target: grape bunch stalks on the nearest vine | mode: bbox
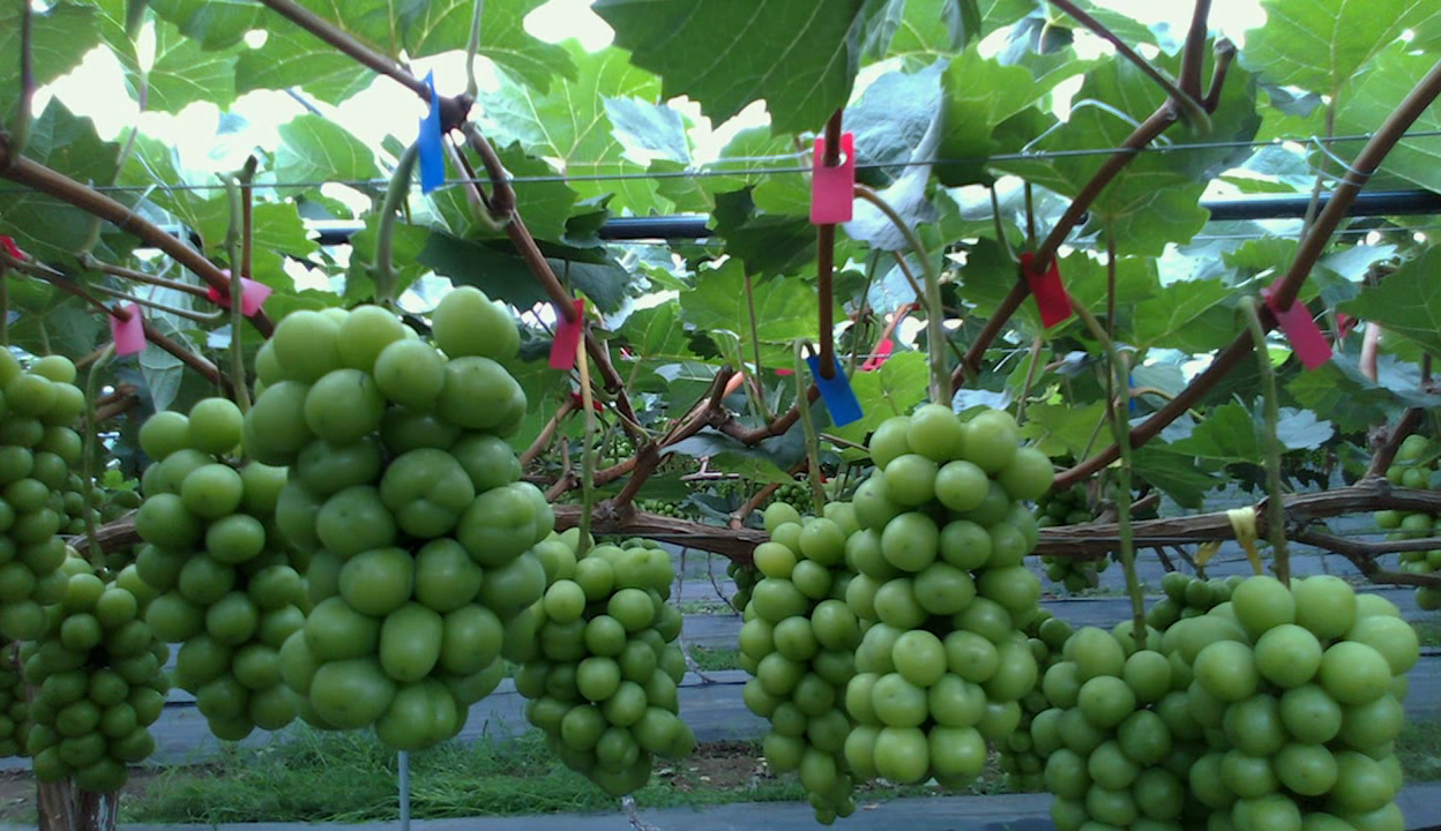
[360,148,416,309]
[865,188,951,405]
[1,252,8,344]
[1241,305,1287,585]
[82,355,106,577]
[792,338,827,516]
[576,349,598,557]
[1075,302,1147,649]
[216,155,259,409]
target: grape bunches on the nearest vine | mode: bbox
[17,557,171,793]
[135,395,312,743]
[1174,572,1421,830]
[1,346,82,642]
[738,500,868,813]
[513,529,695,795]
[1031,620,1209,830]
[241,286,555,753]
[844,404,1052,794]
